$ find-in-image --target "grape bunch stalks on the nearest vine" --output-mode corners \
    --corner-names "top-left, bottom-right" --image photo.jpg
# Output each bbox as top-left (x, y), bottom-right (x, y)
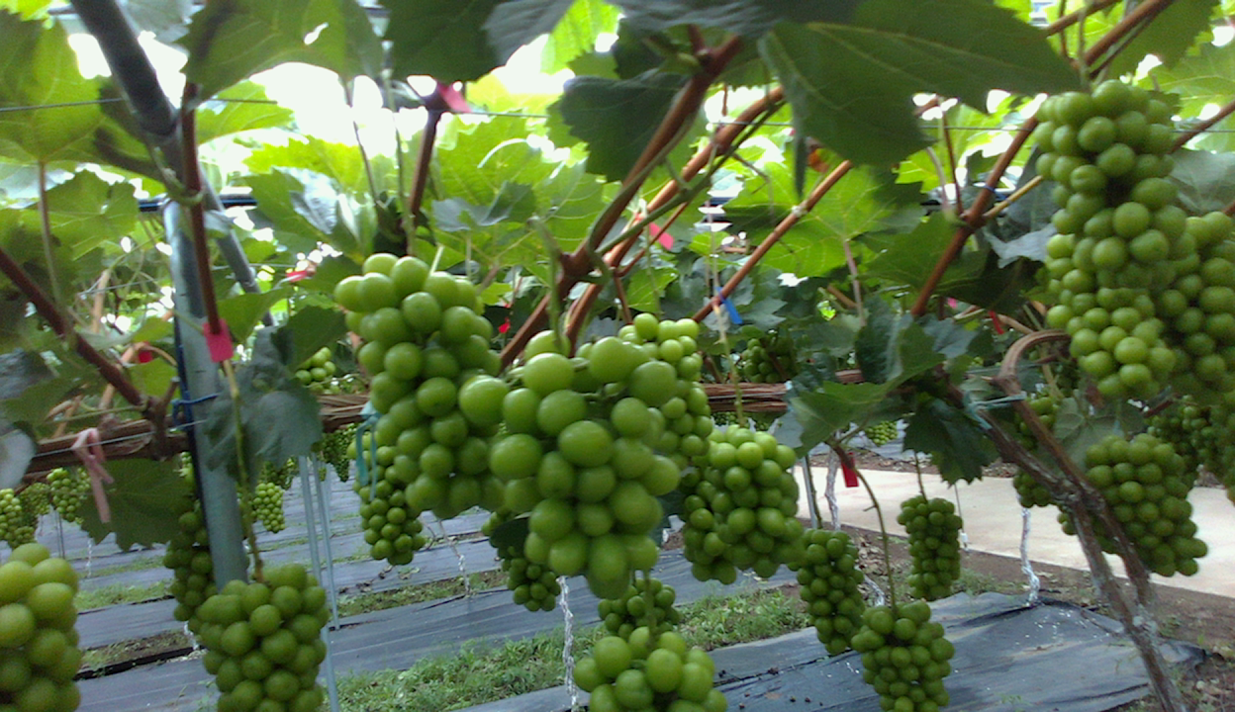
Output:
top-left (222, 358), bottom-right (262, 581)
top-left (527, 216), bottom-right (562, 353)
top-left (712, 306), bottom-right (744, 427)
top-left (1078, 3), bottom-right (1092, 93)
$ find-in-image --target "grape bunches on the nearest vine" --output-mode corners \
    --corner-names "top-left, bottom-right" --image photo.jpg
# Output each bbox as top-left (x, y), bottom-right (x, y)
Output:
top-left (1046, 233), bottom-right (1176, 399)
top-left (456, 331), bottom-right (678, 598)
top-left (335, 253), bottom-right (503, 520)
top-left (201, 563), bottom-right (330, 709)
top-left (2, 545), bottom-right (83, 709)
top-left (571, 626), bottom-right (728, 710)
top-left (707, 423), bottom-right (803, 578)
top-left (1035, 80), bottom-right (1195, 288)
top-left (617, 312), bottom-right (711, 470)
top-left (1148, 211), bottom-right (1234, 408)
